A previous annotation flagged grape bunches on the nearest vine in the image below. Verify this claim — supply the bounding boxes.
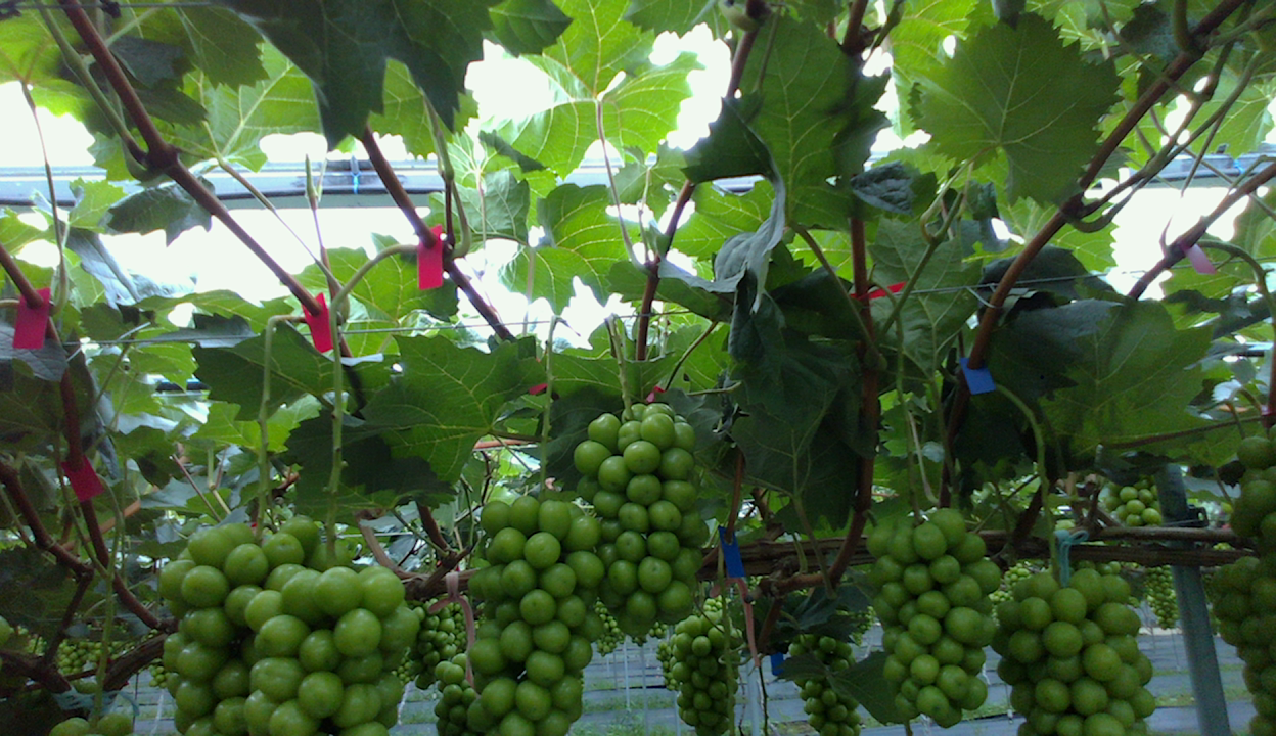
[868,506,1001,727]
[992,568,1156,735]
[242,566,419,735]
[51,712,134,735]
[575,403,709,638]
[161,518,321,735]
[467,496,604,735]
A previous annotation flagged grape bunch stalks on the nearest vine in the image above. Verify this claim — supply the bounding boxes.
[1000,385,1062,584]
[539,317,559,500]
[256,315,305,546]
[323,244,414,568]
[92,482,123,726]
[609,316,634,419]
[872,281,923,524]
